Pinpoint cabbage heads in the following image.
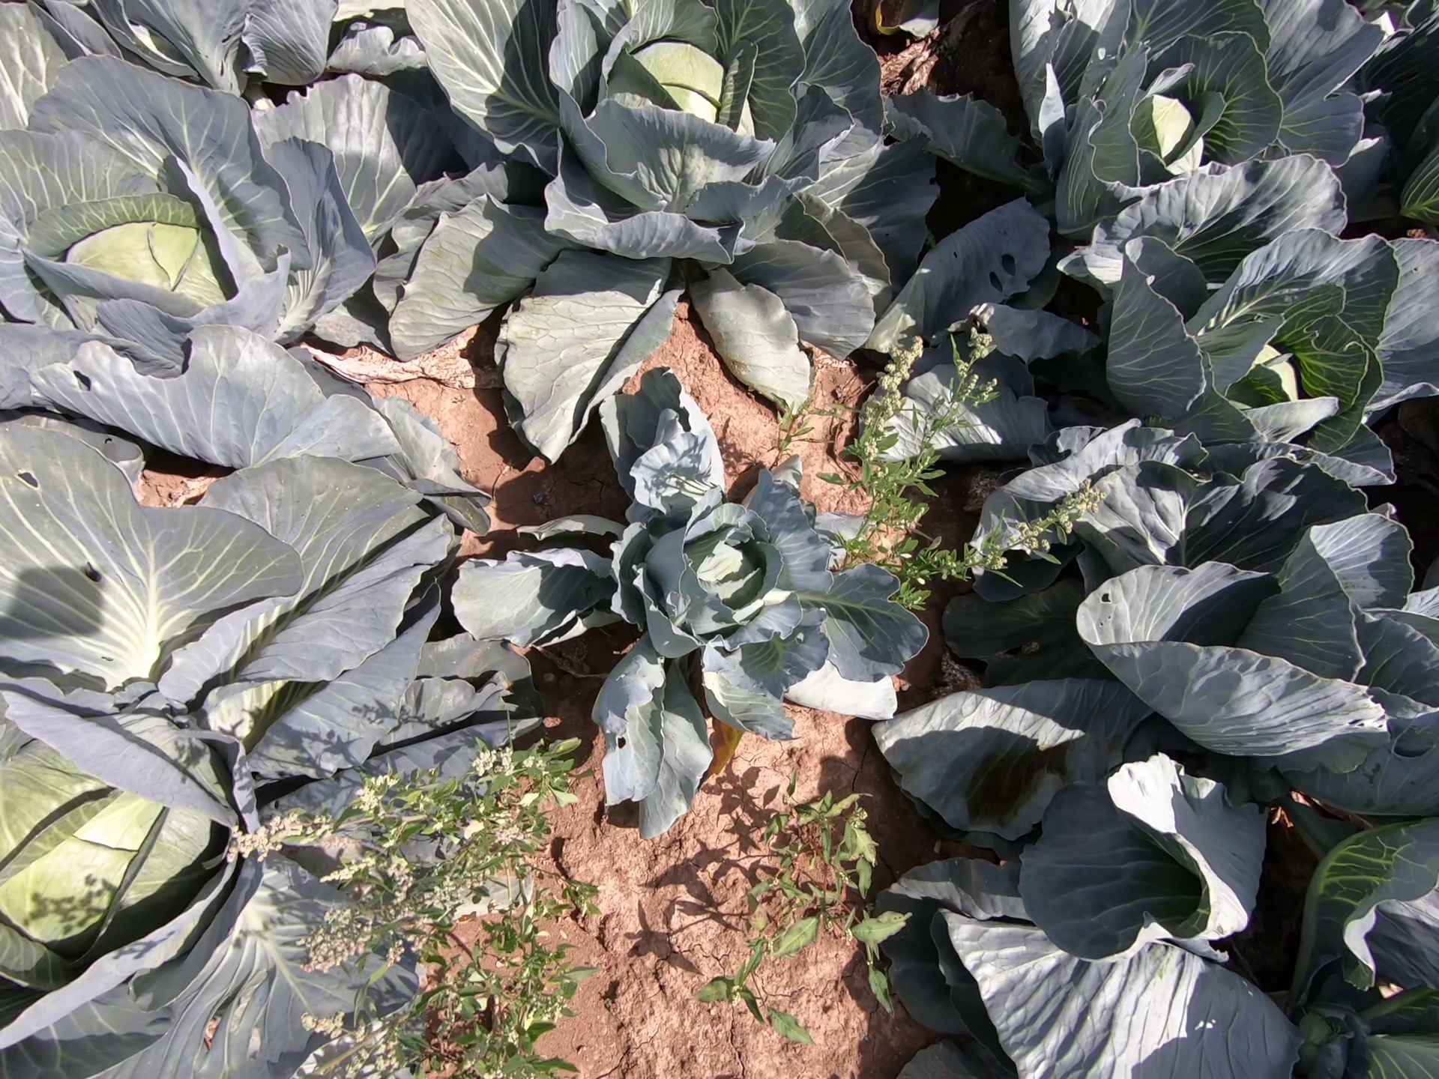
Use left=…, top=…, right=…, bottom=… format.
left=66, top=202, right=274, bottom=355
left=602, top=39, right=755, bottom=208
left=1090, top=91, right=1206, bottom=198
left=669, top=537, right=764, bottom=636
left=1181, top=333, right=1301, bottom=450
left=0, top=710, right=241, bottom=972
